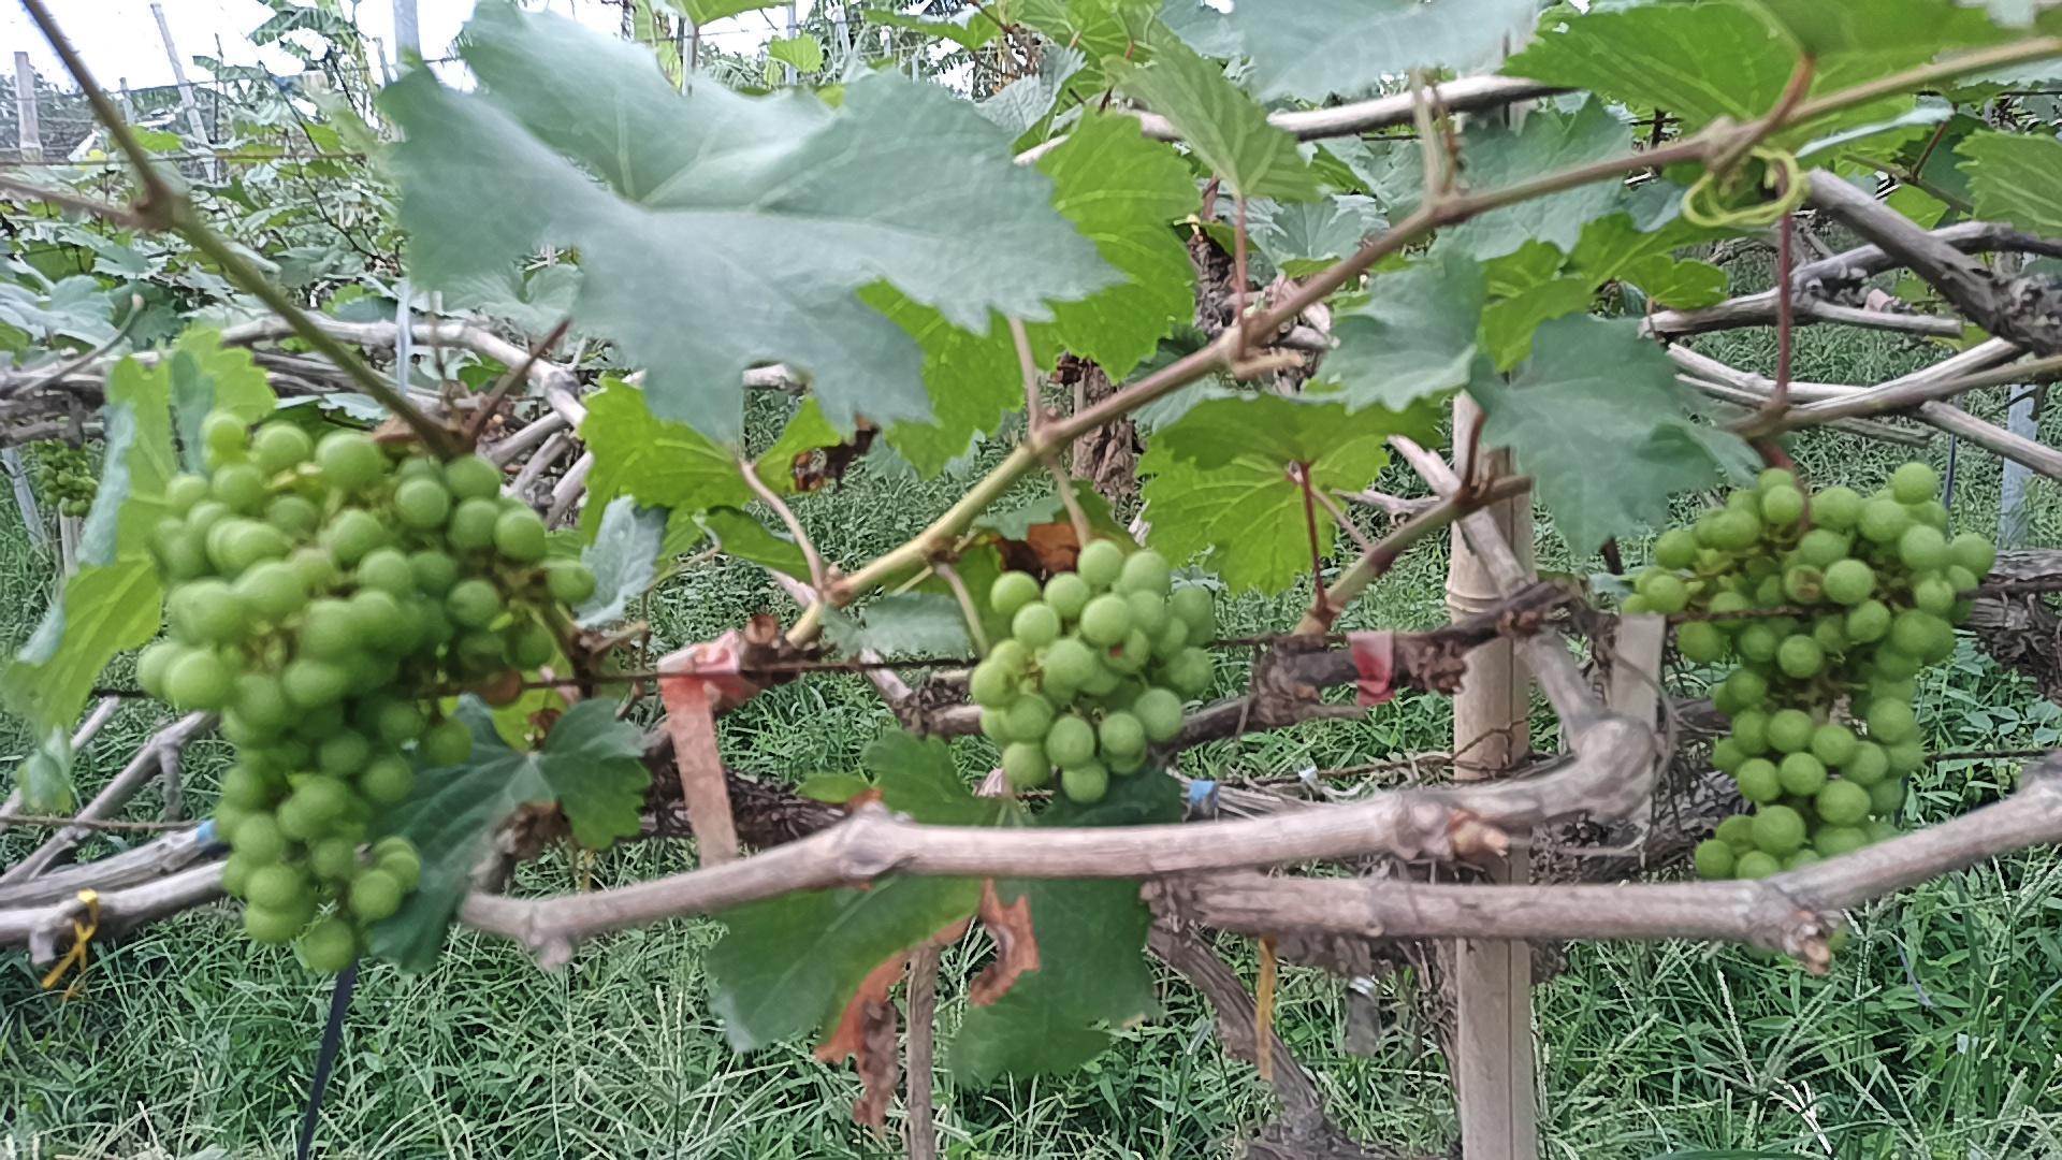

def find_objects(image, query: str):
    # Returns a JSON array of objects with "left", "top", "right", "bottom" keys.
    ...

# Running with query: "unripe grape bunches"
[
  {"left": 137, "top": 415, "right": 590, "bottom": 972},
  {"left": 969, "top": 541, "right": 1211, "bottom": 799},
  {"left": 1621, "top": 464, "right": 1994, "bottom": 878}
]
